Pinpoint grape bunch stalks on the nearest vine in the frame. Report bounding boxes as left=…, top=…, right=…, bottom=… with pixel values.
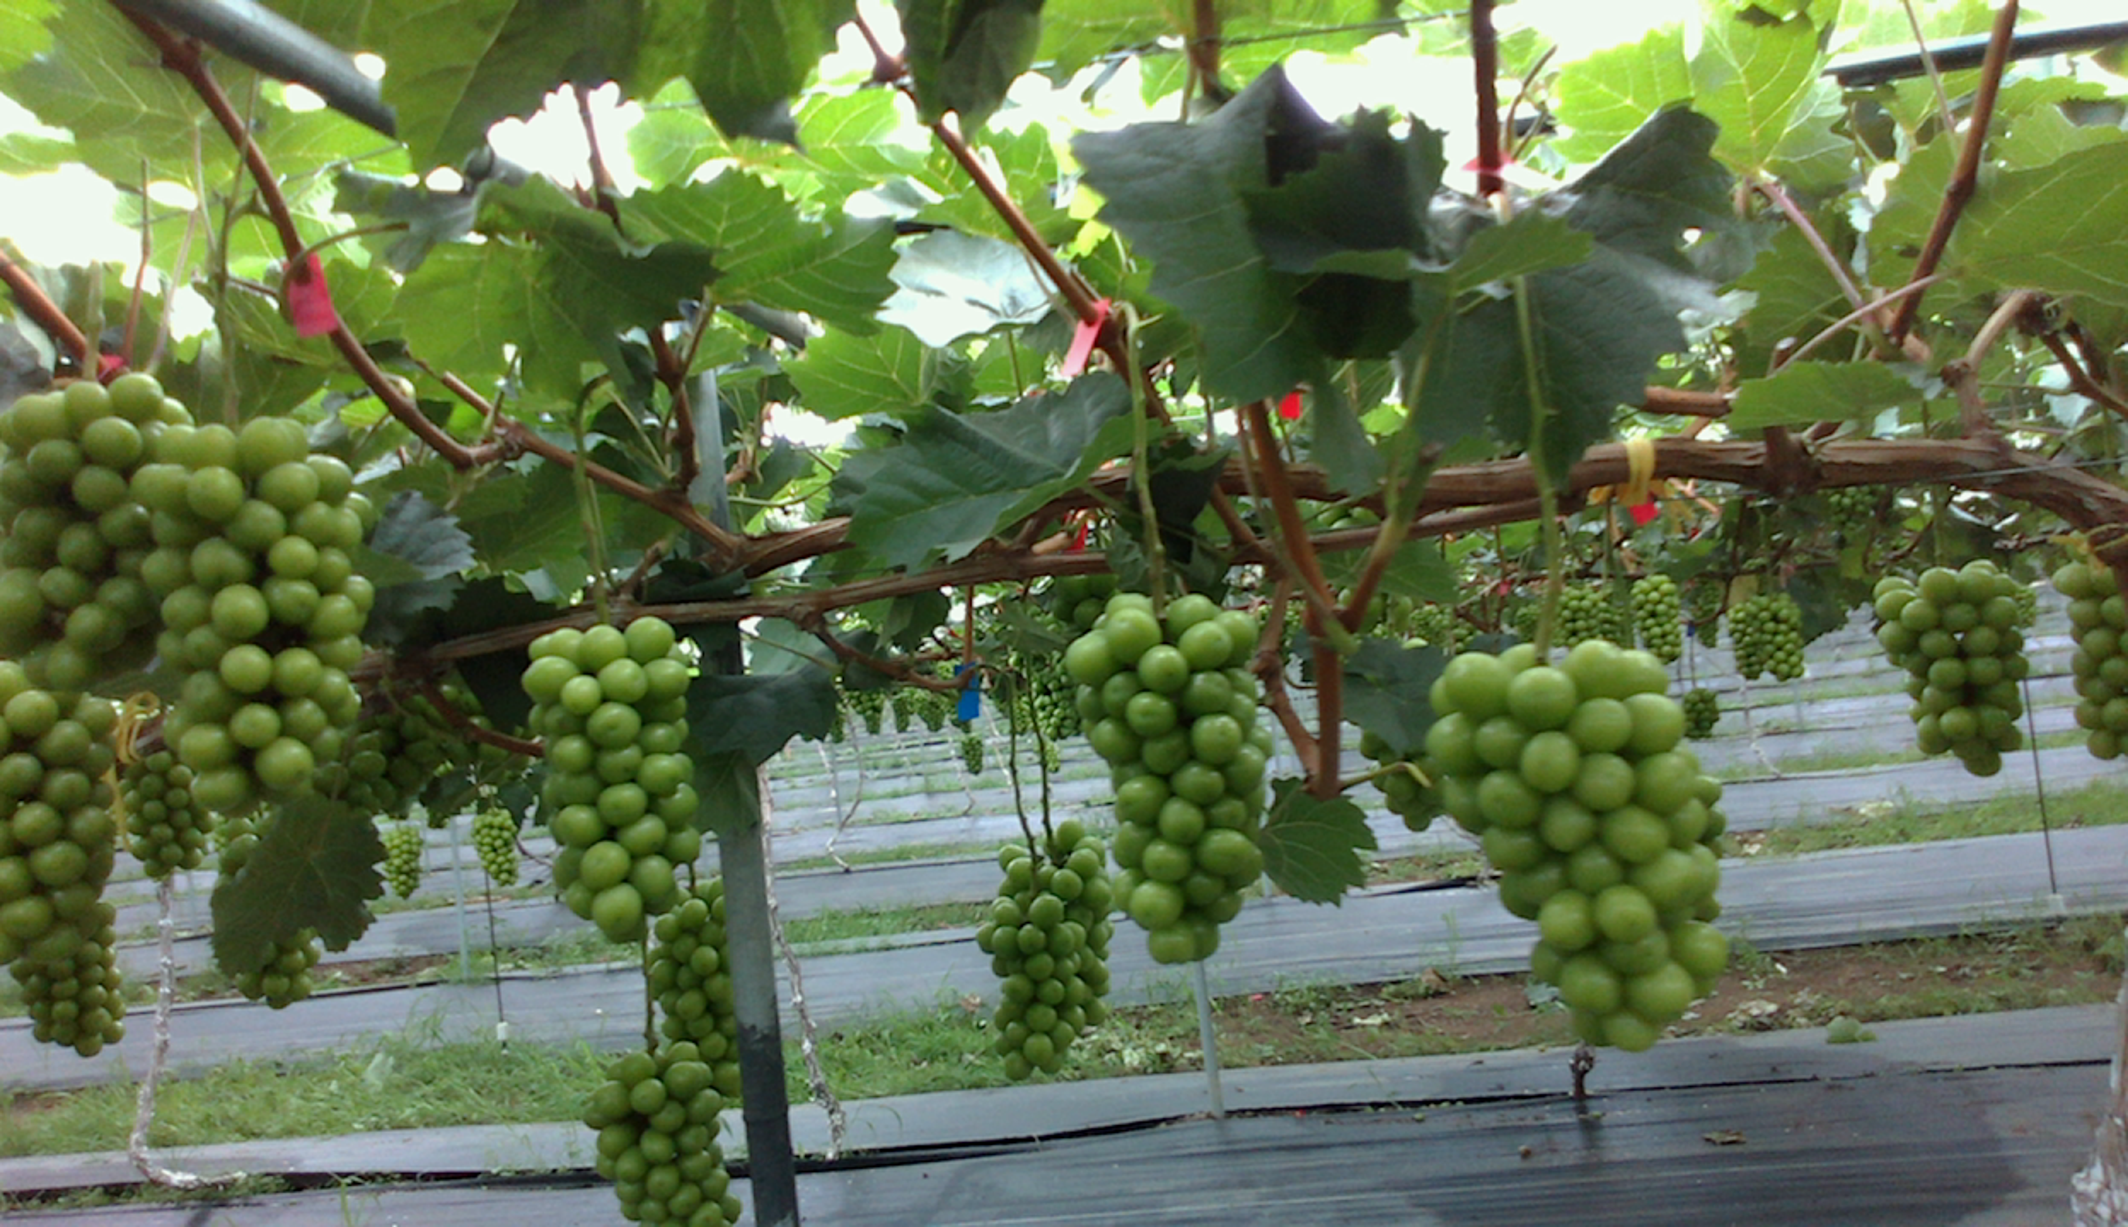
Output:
left=84, top=266, right=101, bottom=380
left=208, top=189, right=266, bottom=424
left=570, top=373, right=607, bottom=624
left=1509, top=285, right=1562, bottom=665
left=1117, top=303, right=1173, bottom=641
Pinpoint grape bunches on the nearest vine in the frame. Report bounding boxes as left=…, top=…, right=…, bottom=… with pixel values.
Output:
left=1062, top=593, right=1272, bottom=965
left=1427, top=639, right=1731, bottom=1053
left=0, top=658, right=118, bottom=963
left=523, top=617, right=703, bottom=937
left=135, top=416, right=379, bottom=816
left=0, top=370, right=196, bottom=692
